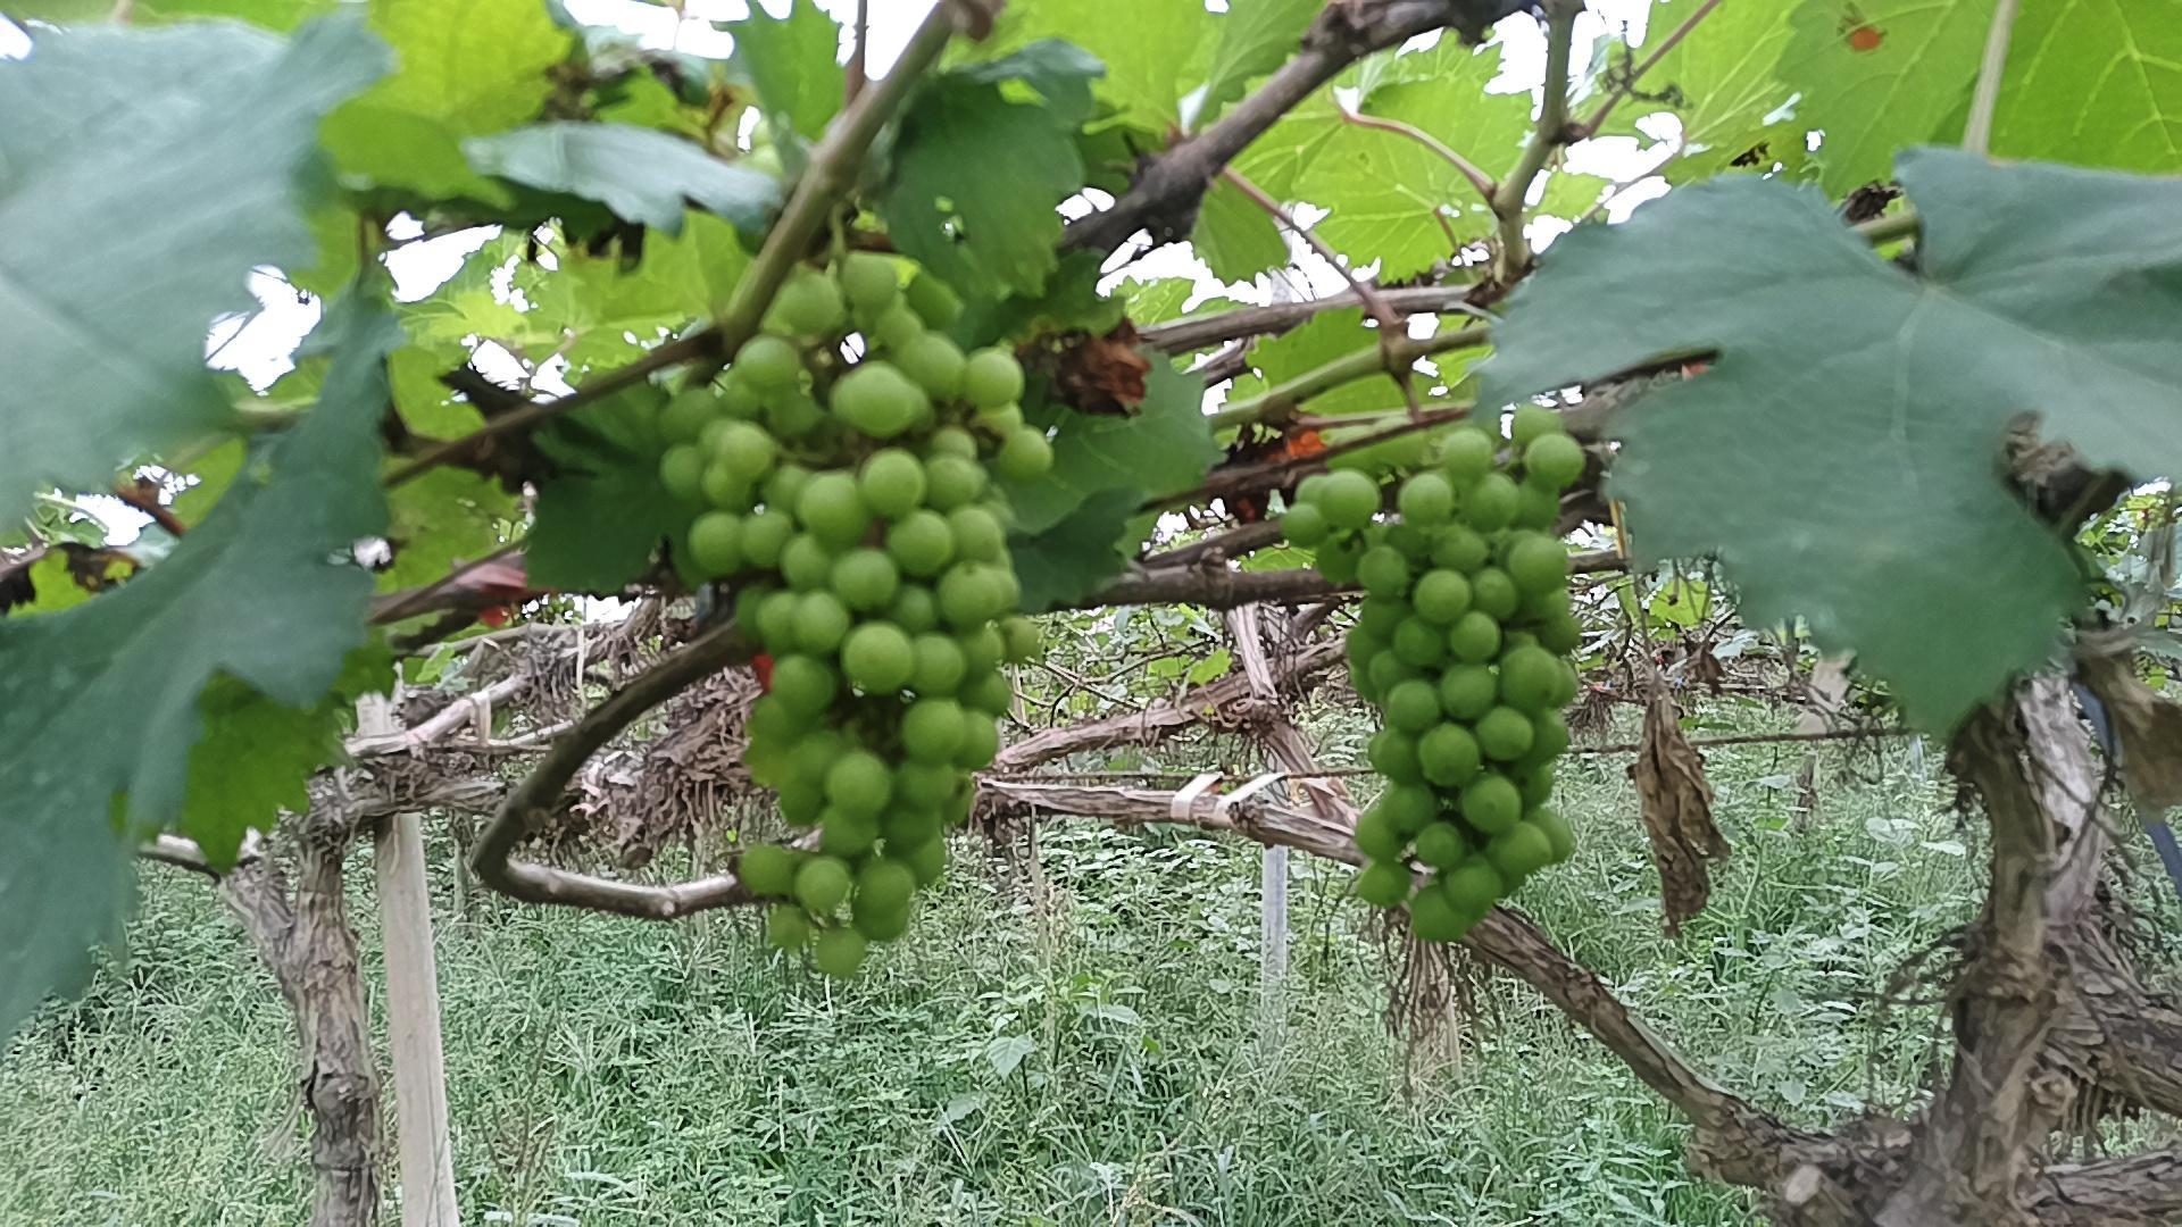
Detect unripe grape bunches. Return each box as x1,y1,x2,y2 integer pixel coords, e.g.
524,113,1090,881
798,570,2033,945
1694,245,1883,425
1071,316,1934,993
656,256,1052,980
1276,402,1584,942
